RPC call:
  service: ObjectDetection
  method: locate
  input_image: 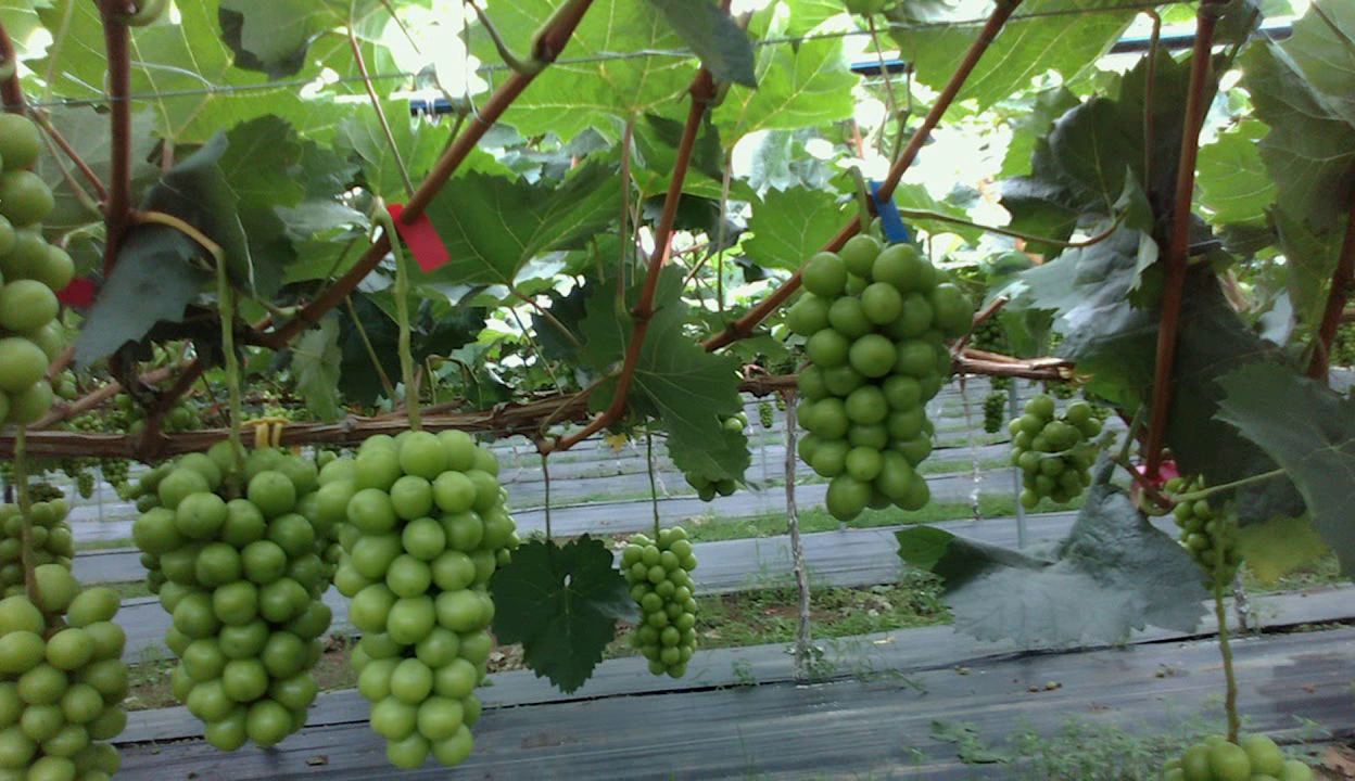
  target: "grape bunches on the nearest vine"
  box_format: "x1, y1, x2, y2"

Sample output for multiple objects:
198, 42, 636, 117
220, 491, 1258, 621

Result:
315, 428, 511, 767
789, 234, 973, 523
0, 565, 131, 779
131, 440, 333, 752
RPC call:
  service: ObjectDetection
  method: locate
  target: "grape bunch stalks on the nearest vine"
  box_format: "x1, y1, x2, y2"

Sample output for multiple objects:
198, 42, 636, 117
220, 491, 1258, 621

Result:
14, 424, 40, 609
847, 163, 870, 234
369, 195, 420, 431
127, 208, 241, 496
